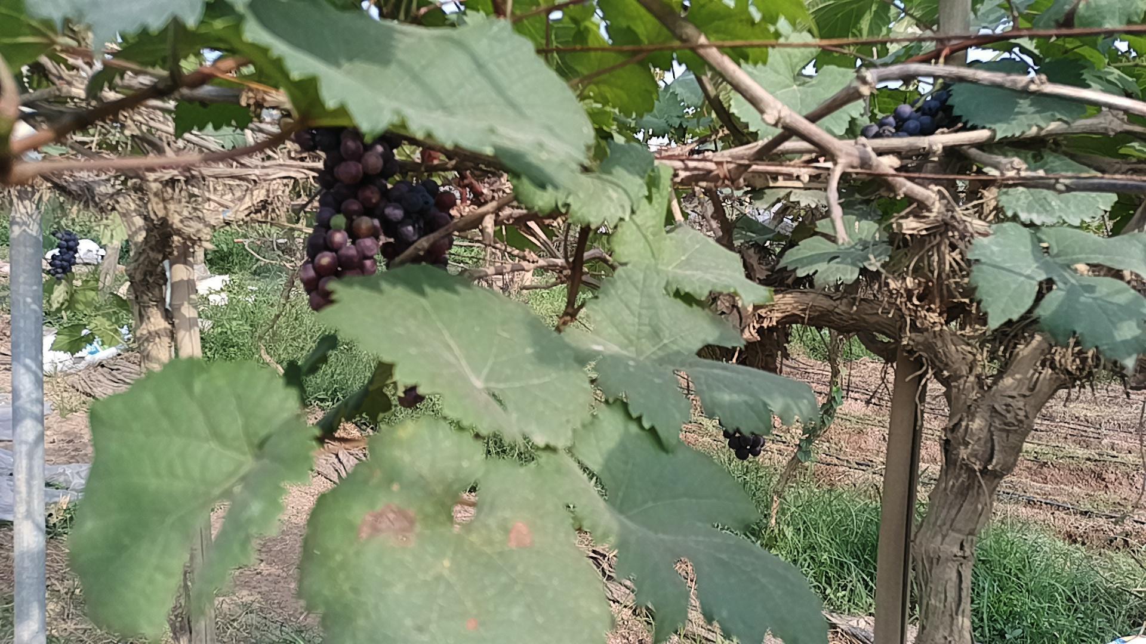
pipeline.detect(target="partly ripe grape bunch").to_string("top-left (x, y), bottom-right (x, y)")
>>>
top-left (296, 128), bottom-right (402, 310)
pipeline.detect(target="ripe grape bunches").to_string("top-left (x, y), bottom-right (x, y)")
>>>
top-left (376, 179), bottom-right (456, 271)
top-left (48, 229), bottom-right (81, 282)
top-left (860, 84), bottom-right (960, 138)
top-left (719, 420), bottom-right (765, 460)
